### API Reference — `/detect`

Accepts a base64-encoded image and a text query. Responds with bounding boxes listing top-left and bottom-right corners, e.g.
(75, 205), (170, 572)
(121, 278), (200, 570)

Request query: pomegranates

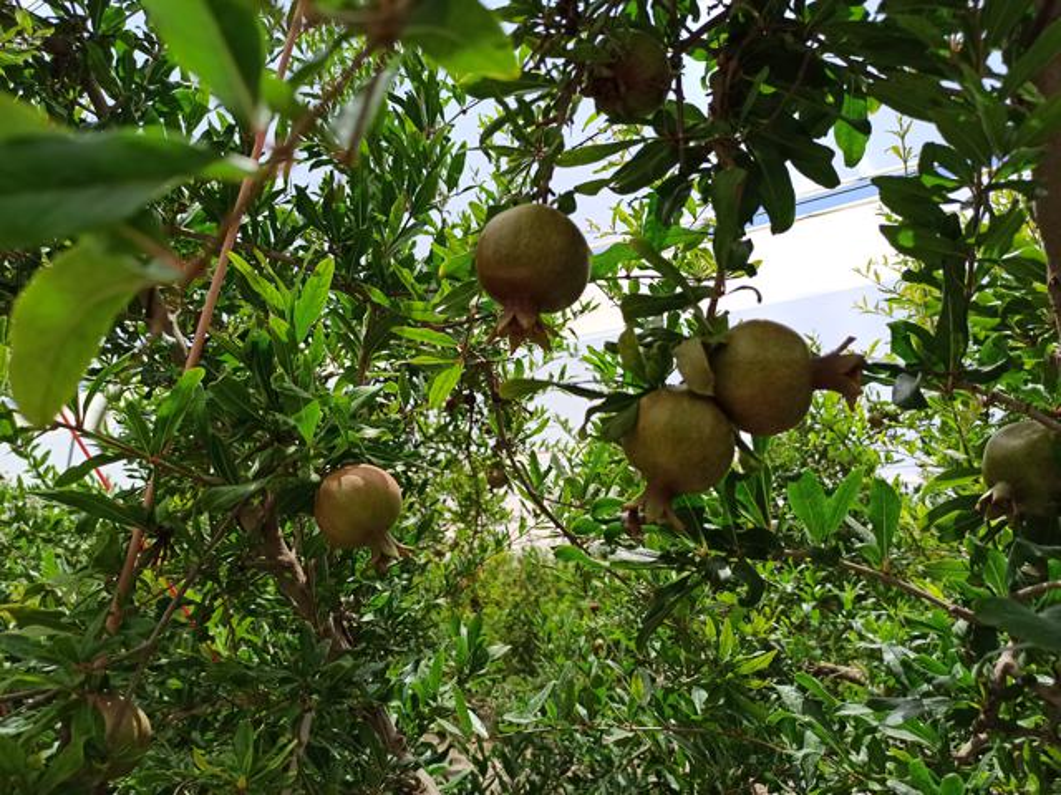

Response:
(477, 204), (590, 356)
(93, 694), (153, 777)
(973, 419), (1061, 532)
(315, 464), (414, 576)
(708, 318), (862, 436)
(587, 30), (673, 118)
(620, 386), (734, 532)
